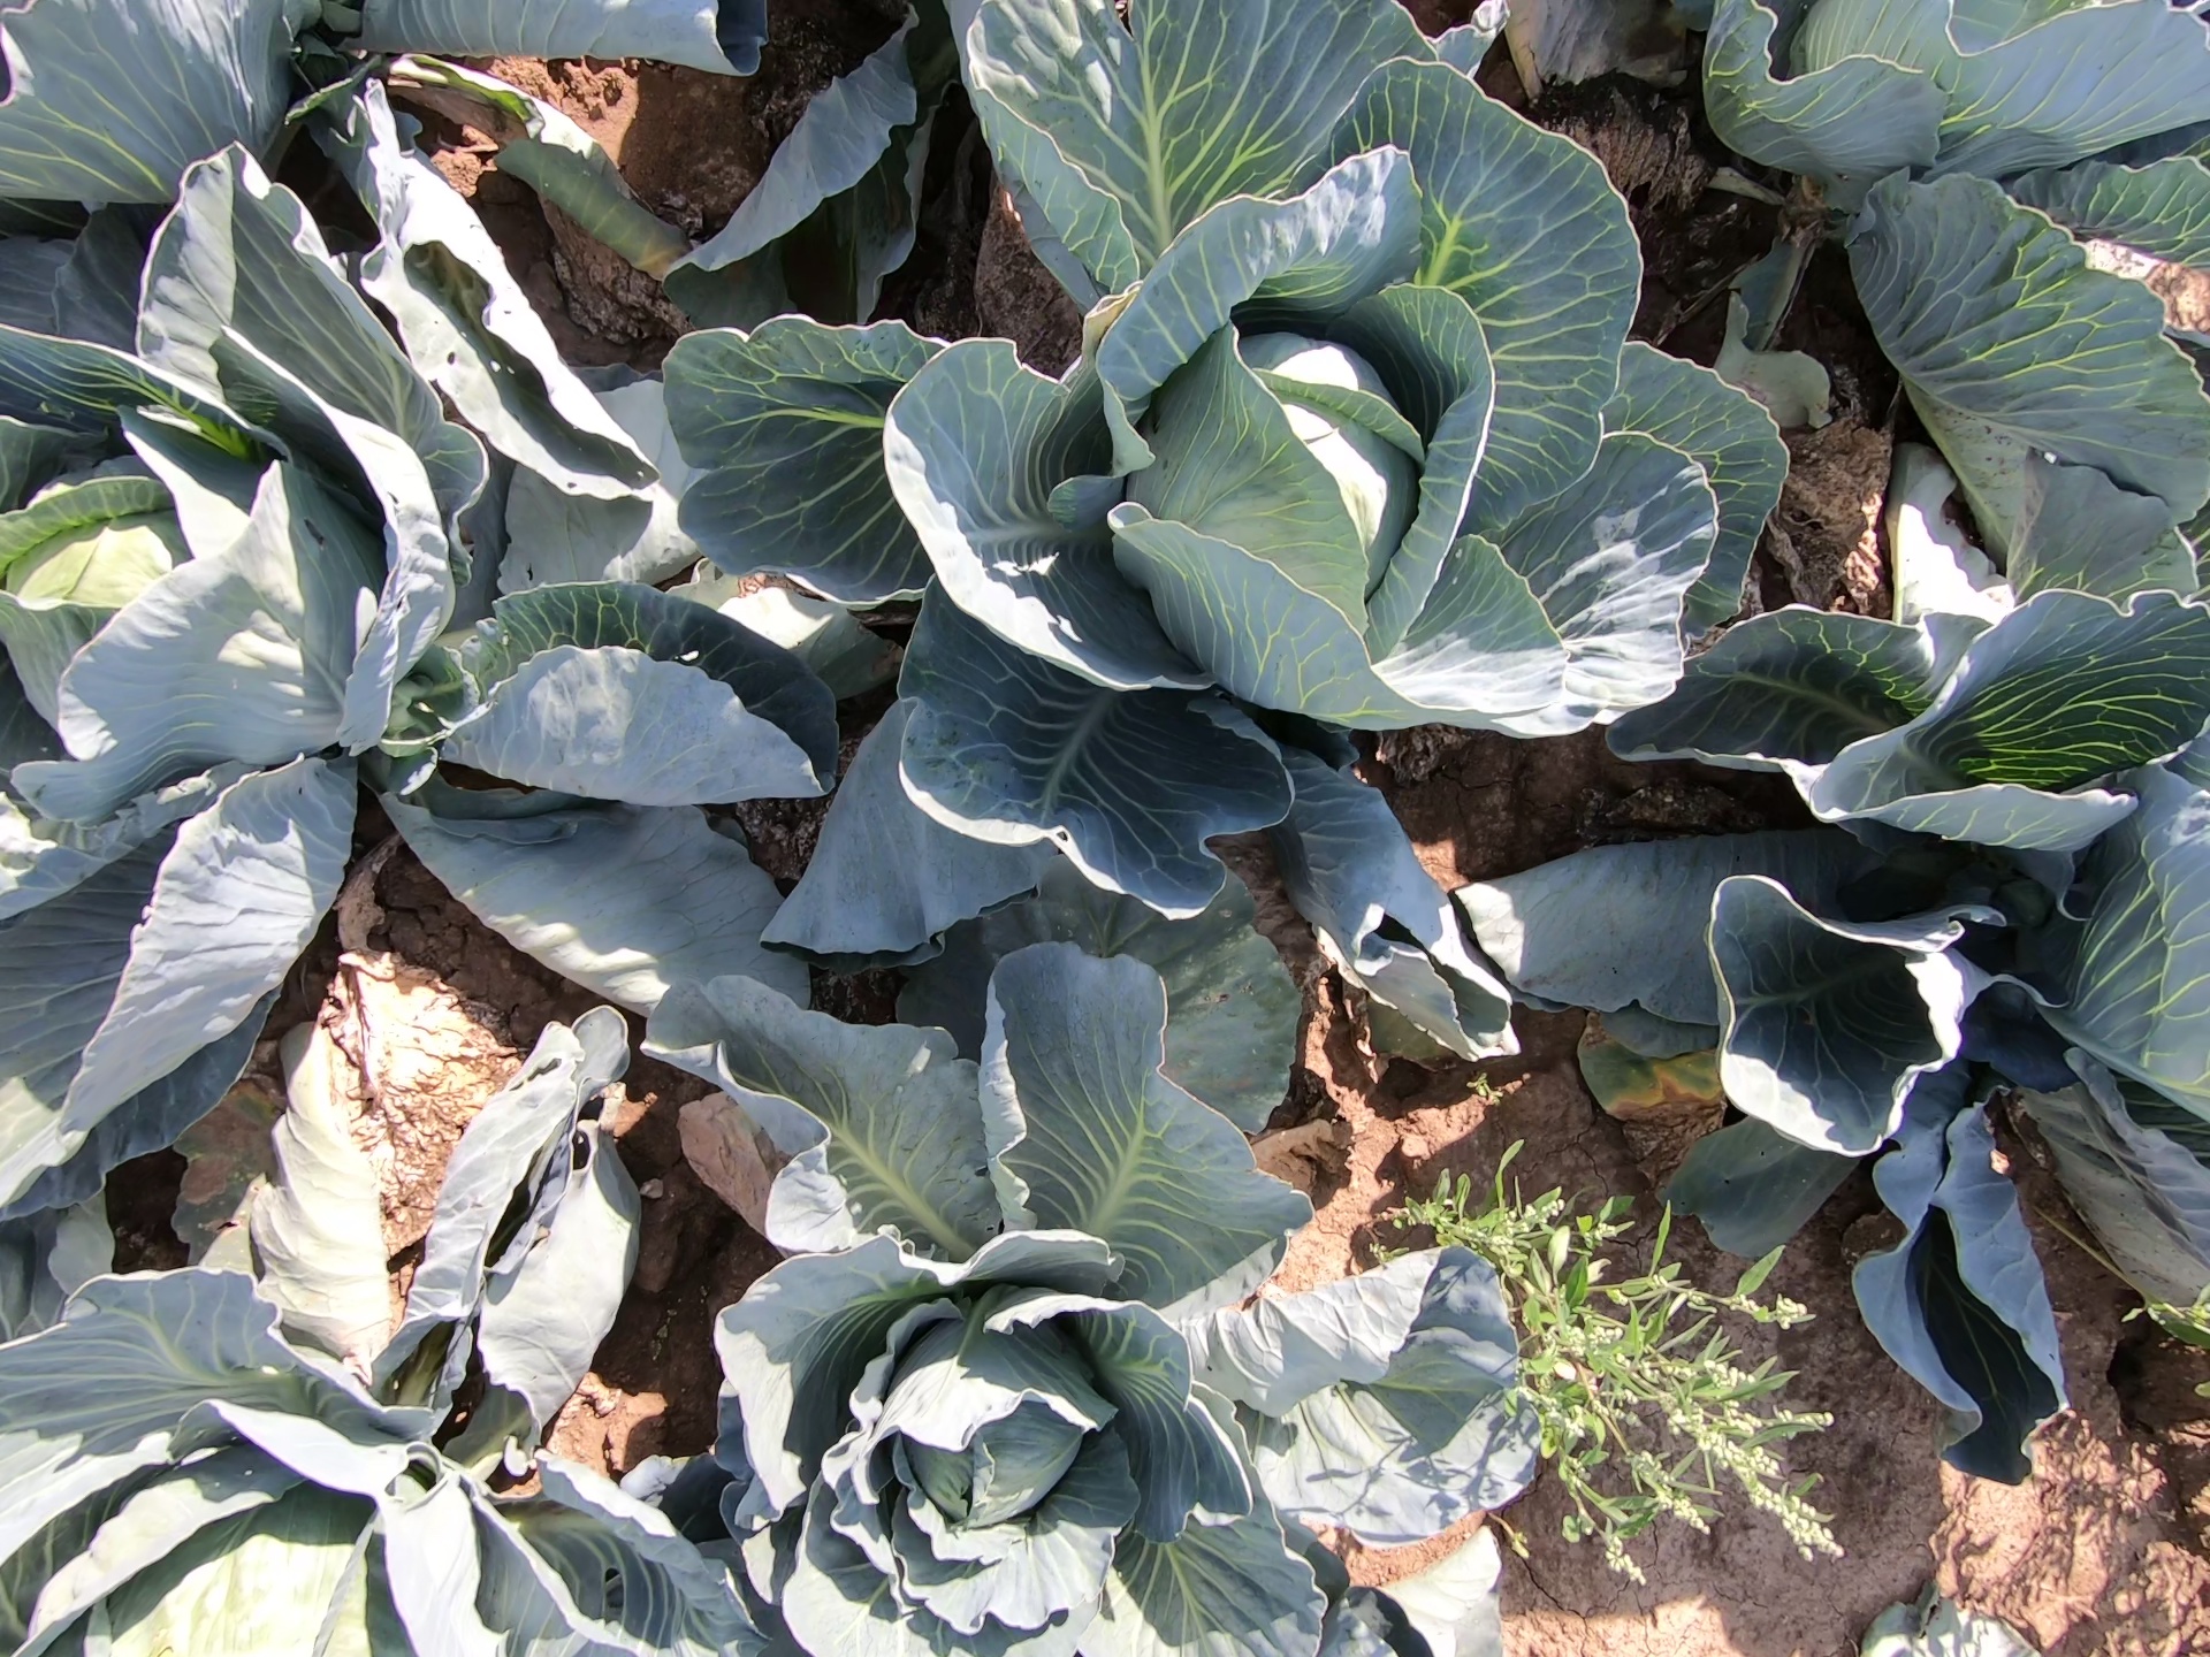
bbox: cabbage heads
[906,1315,1070,1517]
[76,1468,457,1652]
[5,457,346,754]
[1157,331,1415,631]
